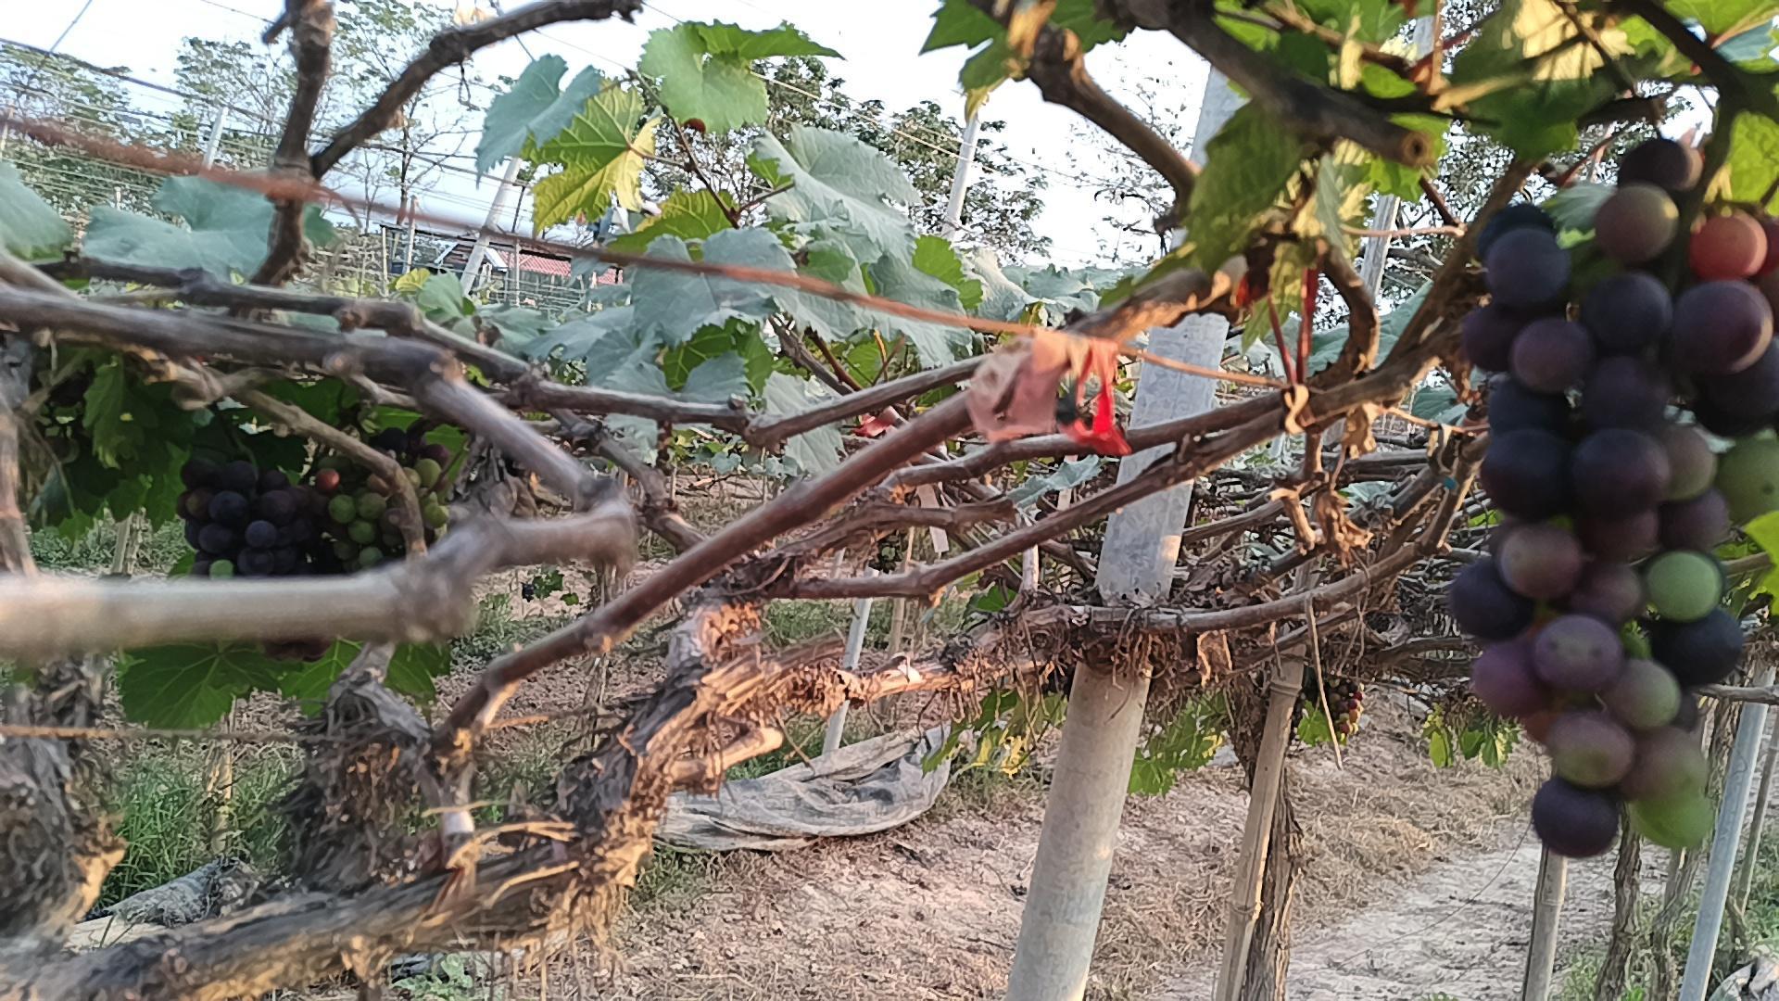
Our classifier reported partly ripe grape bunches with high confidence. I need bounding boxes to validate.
[1295,667,1364,743]
[1448,140,1778,857]
[178,428,452,661]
